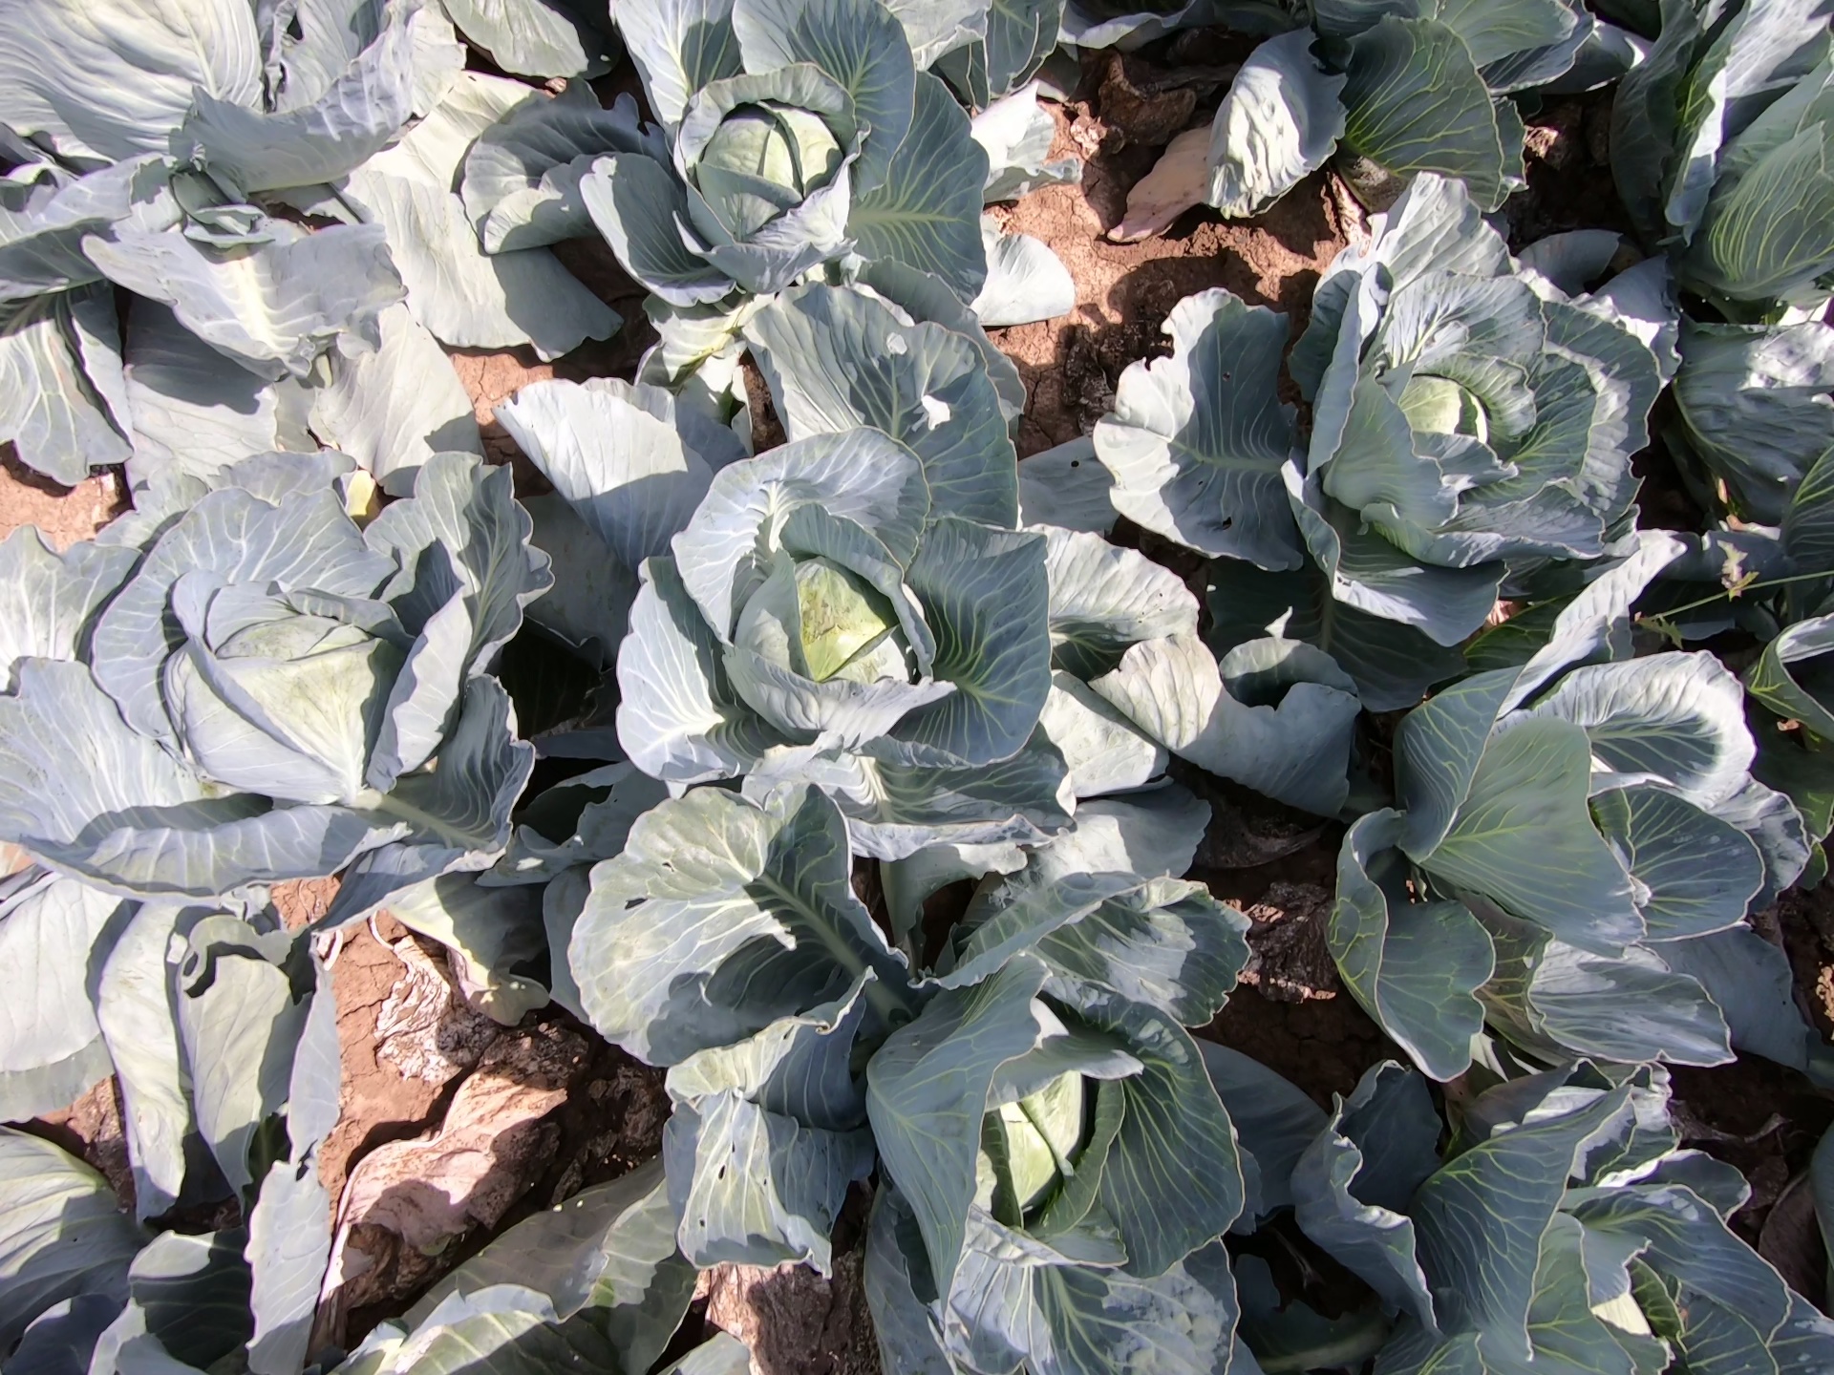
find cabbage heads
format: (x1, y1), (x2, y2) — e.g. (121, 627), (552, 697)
(1347, 366), (1493, 508)
(167, 611), (419, 799)
(1500, 1216), (1662, 1368)
(736, 555), (929, 738)
(883, 991), (1092, 1233)
(689, 90), (853, 276)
